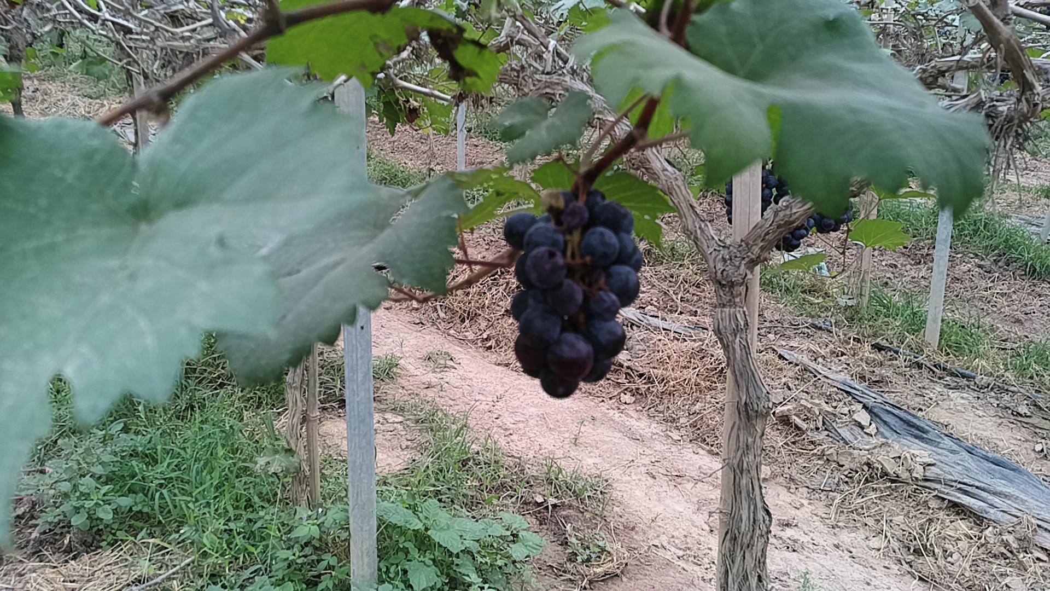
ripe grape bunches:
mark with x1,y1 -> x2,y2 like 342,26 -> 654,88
724,178 -> 733,223
775,213 -> 815,252
768,169 -> 789,204
505,189 -> 642,398
812,200 -> 855,234
760,163 -> 780,216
